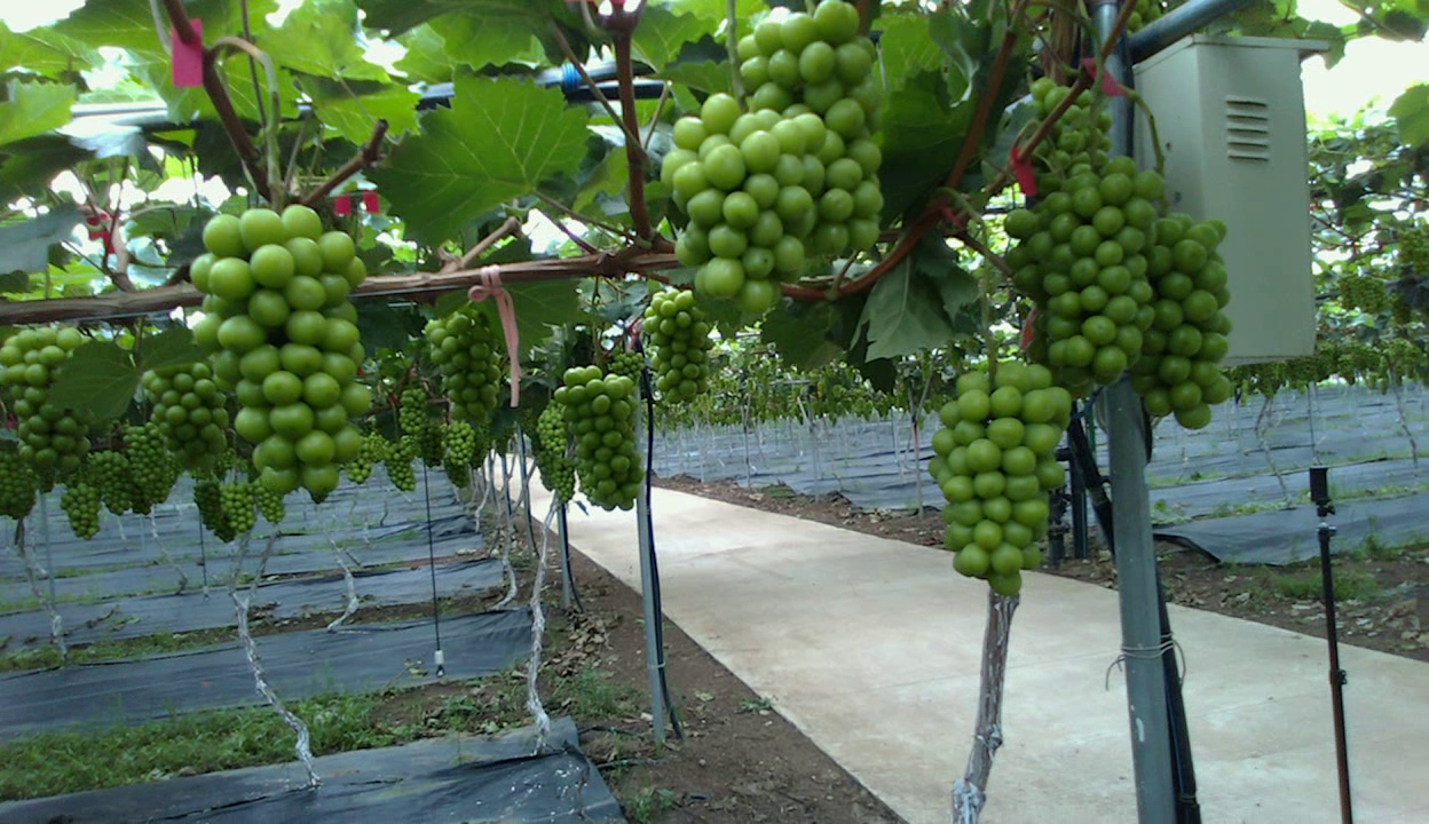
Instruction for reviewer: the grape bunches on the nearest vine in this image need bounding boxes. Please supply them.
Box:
[1002,156,1167,396]
[927,360,1072,595]
[736,0,886,259]
[188,204,371,494]
[1131,212,1235,431]
[660,93,827,315]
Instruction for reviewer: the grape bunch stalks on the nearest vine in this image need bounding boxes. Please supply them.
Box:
[937,188,1002,394]
[1029,0,1105,172]
[726,1,751,114]
[210,35,285,216]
